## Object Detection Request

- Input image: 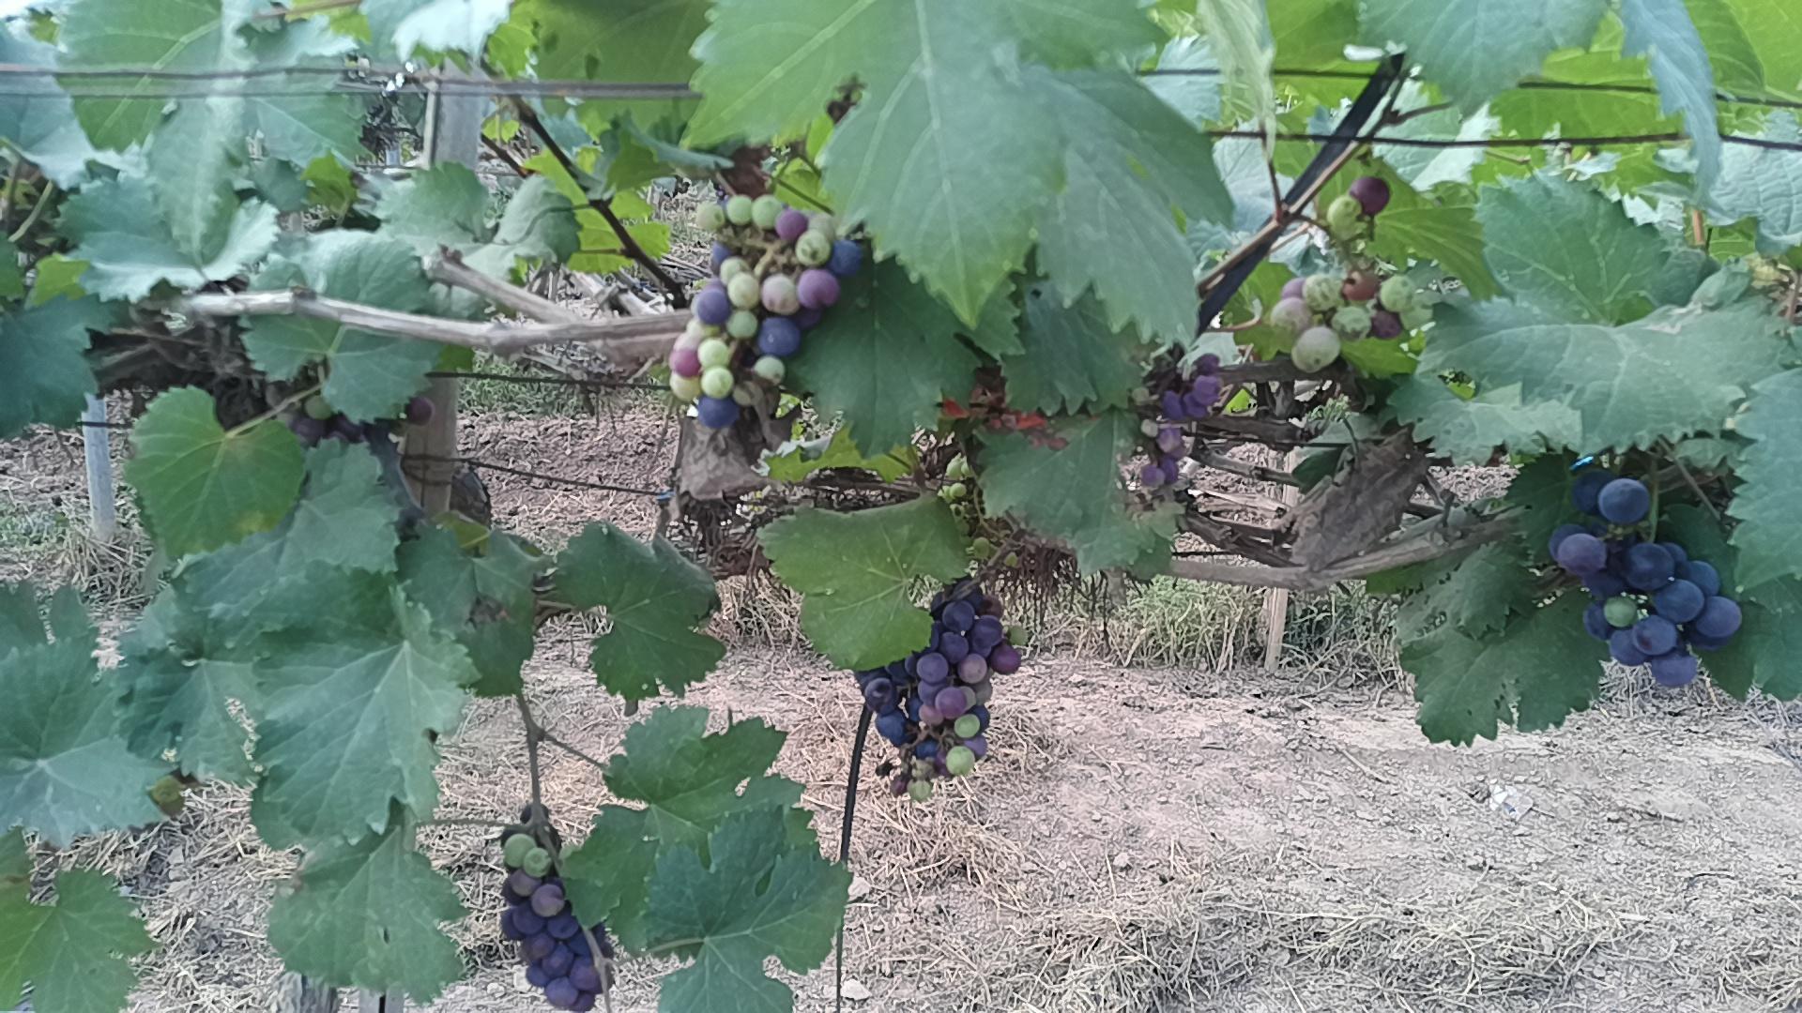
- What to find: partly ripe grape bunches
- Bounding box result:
[500,802,614,1012]
[853,573,1028,802]
[265,384,434,468]
[669,194,863,430]
[1271,176,1432,372]
[1548,471,1743,688]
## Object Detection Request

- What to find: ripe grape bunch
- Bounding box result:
[1139,353,1221,487]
